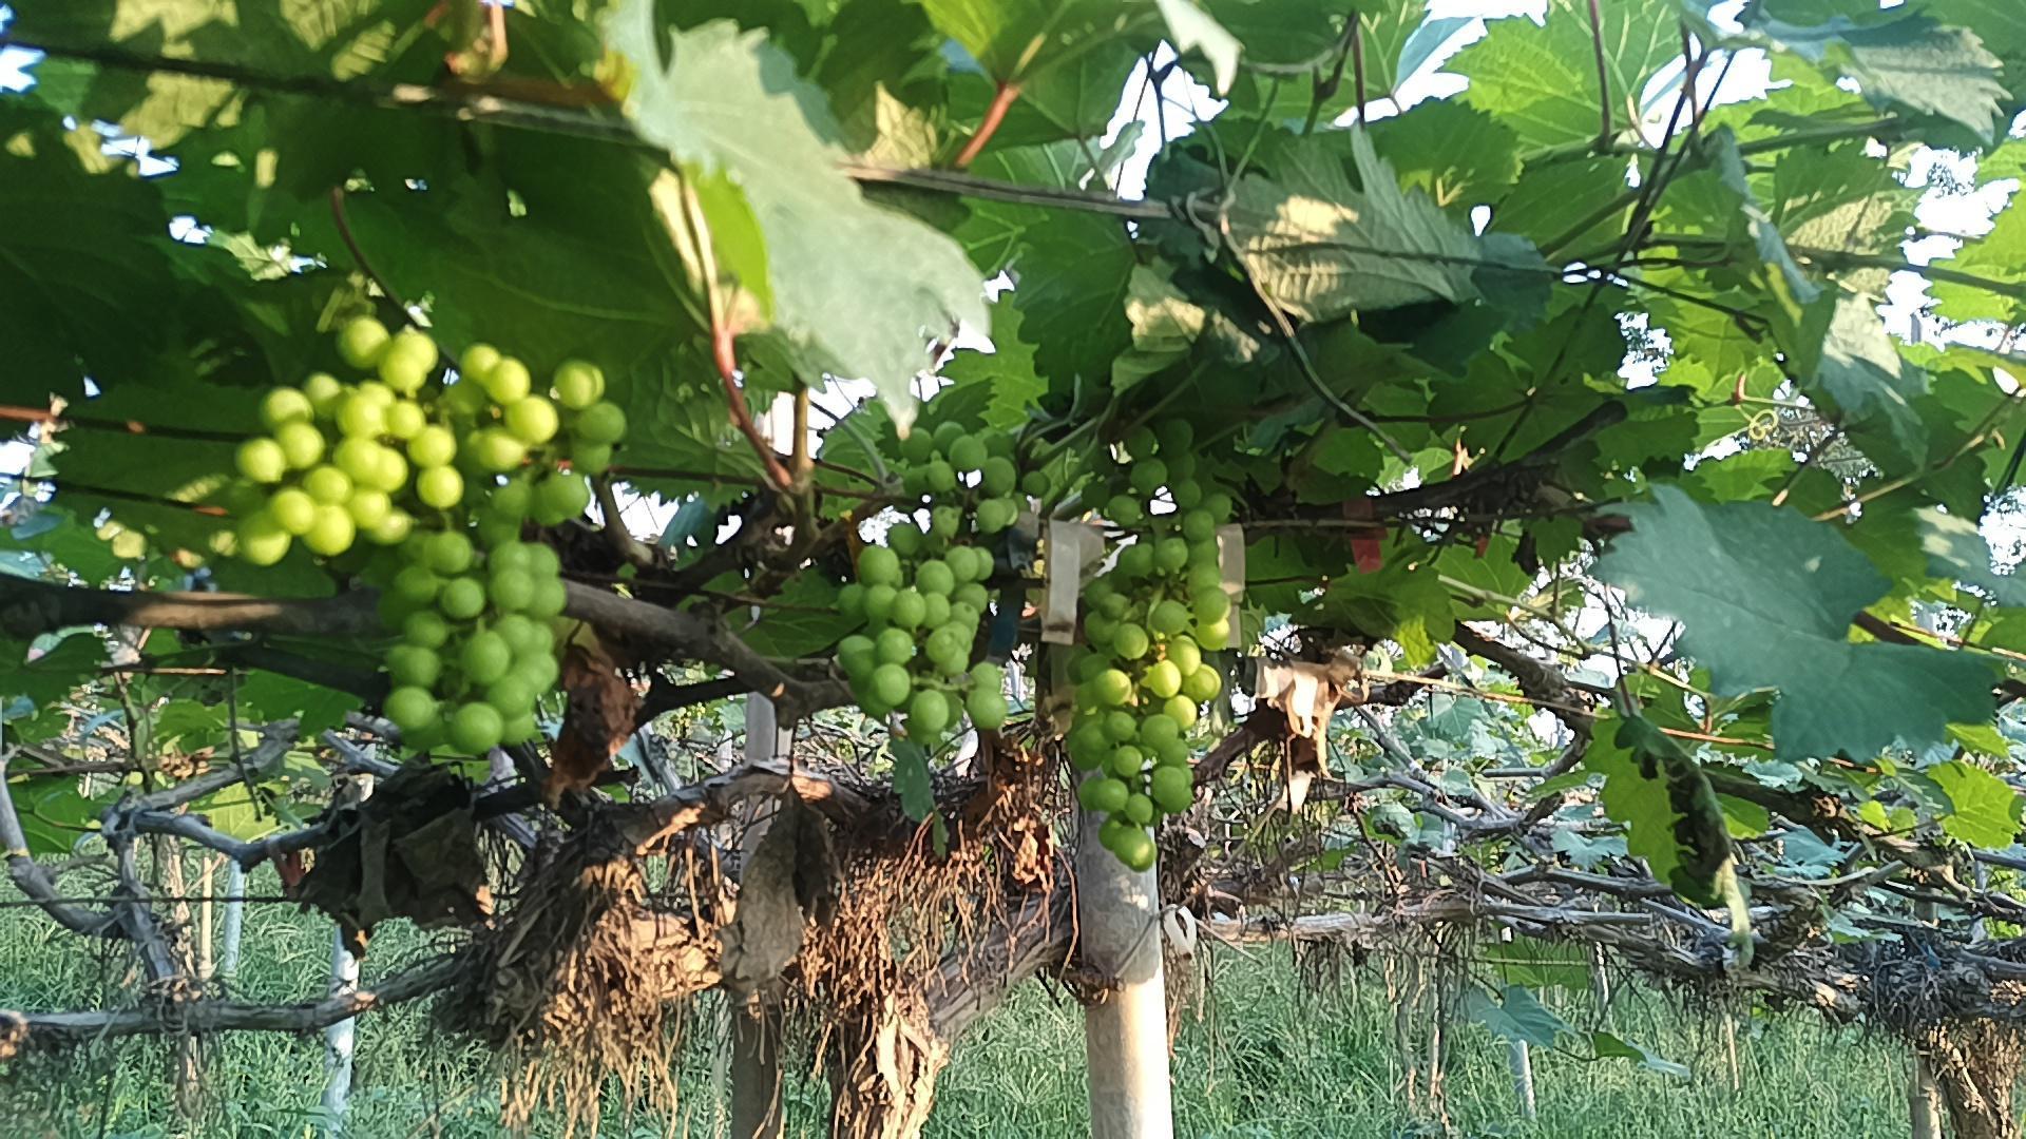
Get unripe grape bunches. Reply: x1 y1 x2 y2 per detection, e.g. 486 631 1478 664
214 316 625 754
838 423 1025 746
1069 421 1232 870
